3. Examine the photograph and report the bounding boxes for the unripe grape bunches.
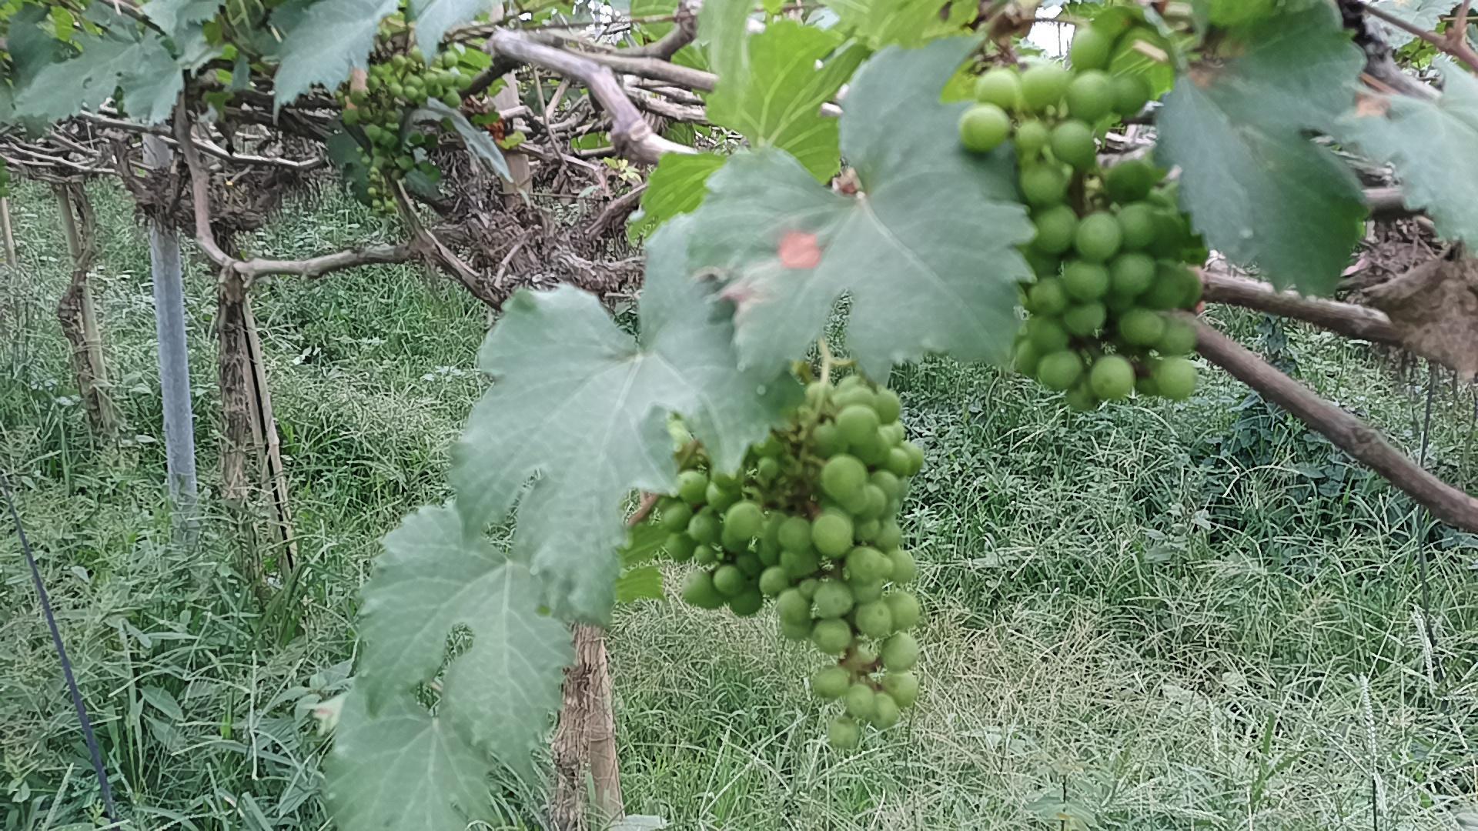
[654,374,923,748]
[336,18,472,215]
[961,25,1206,412]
